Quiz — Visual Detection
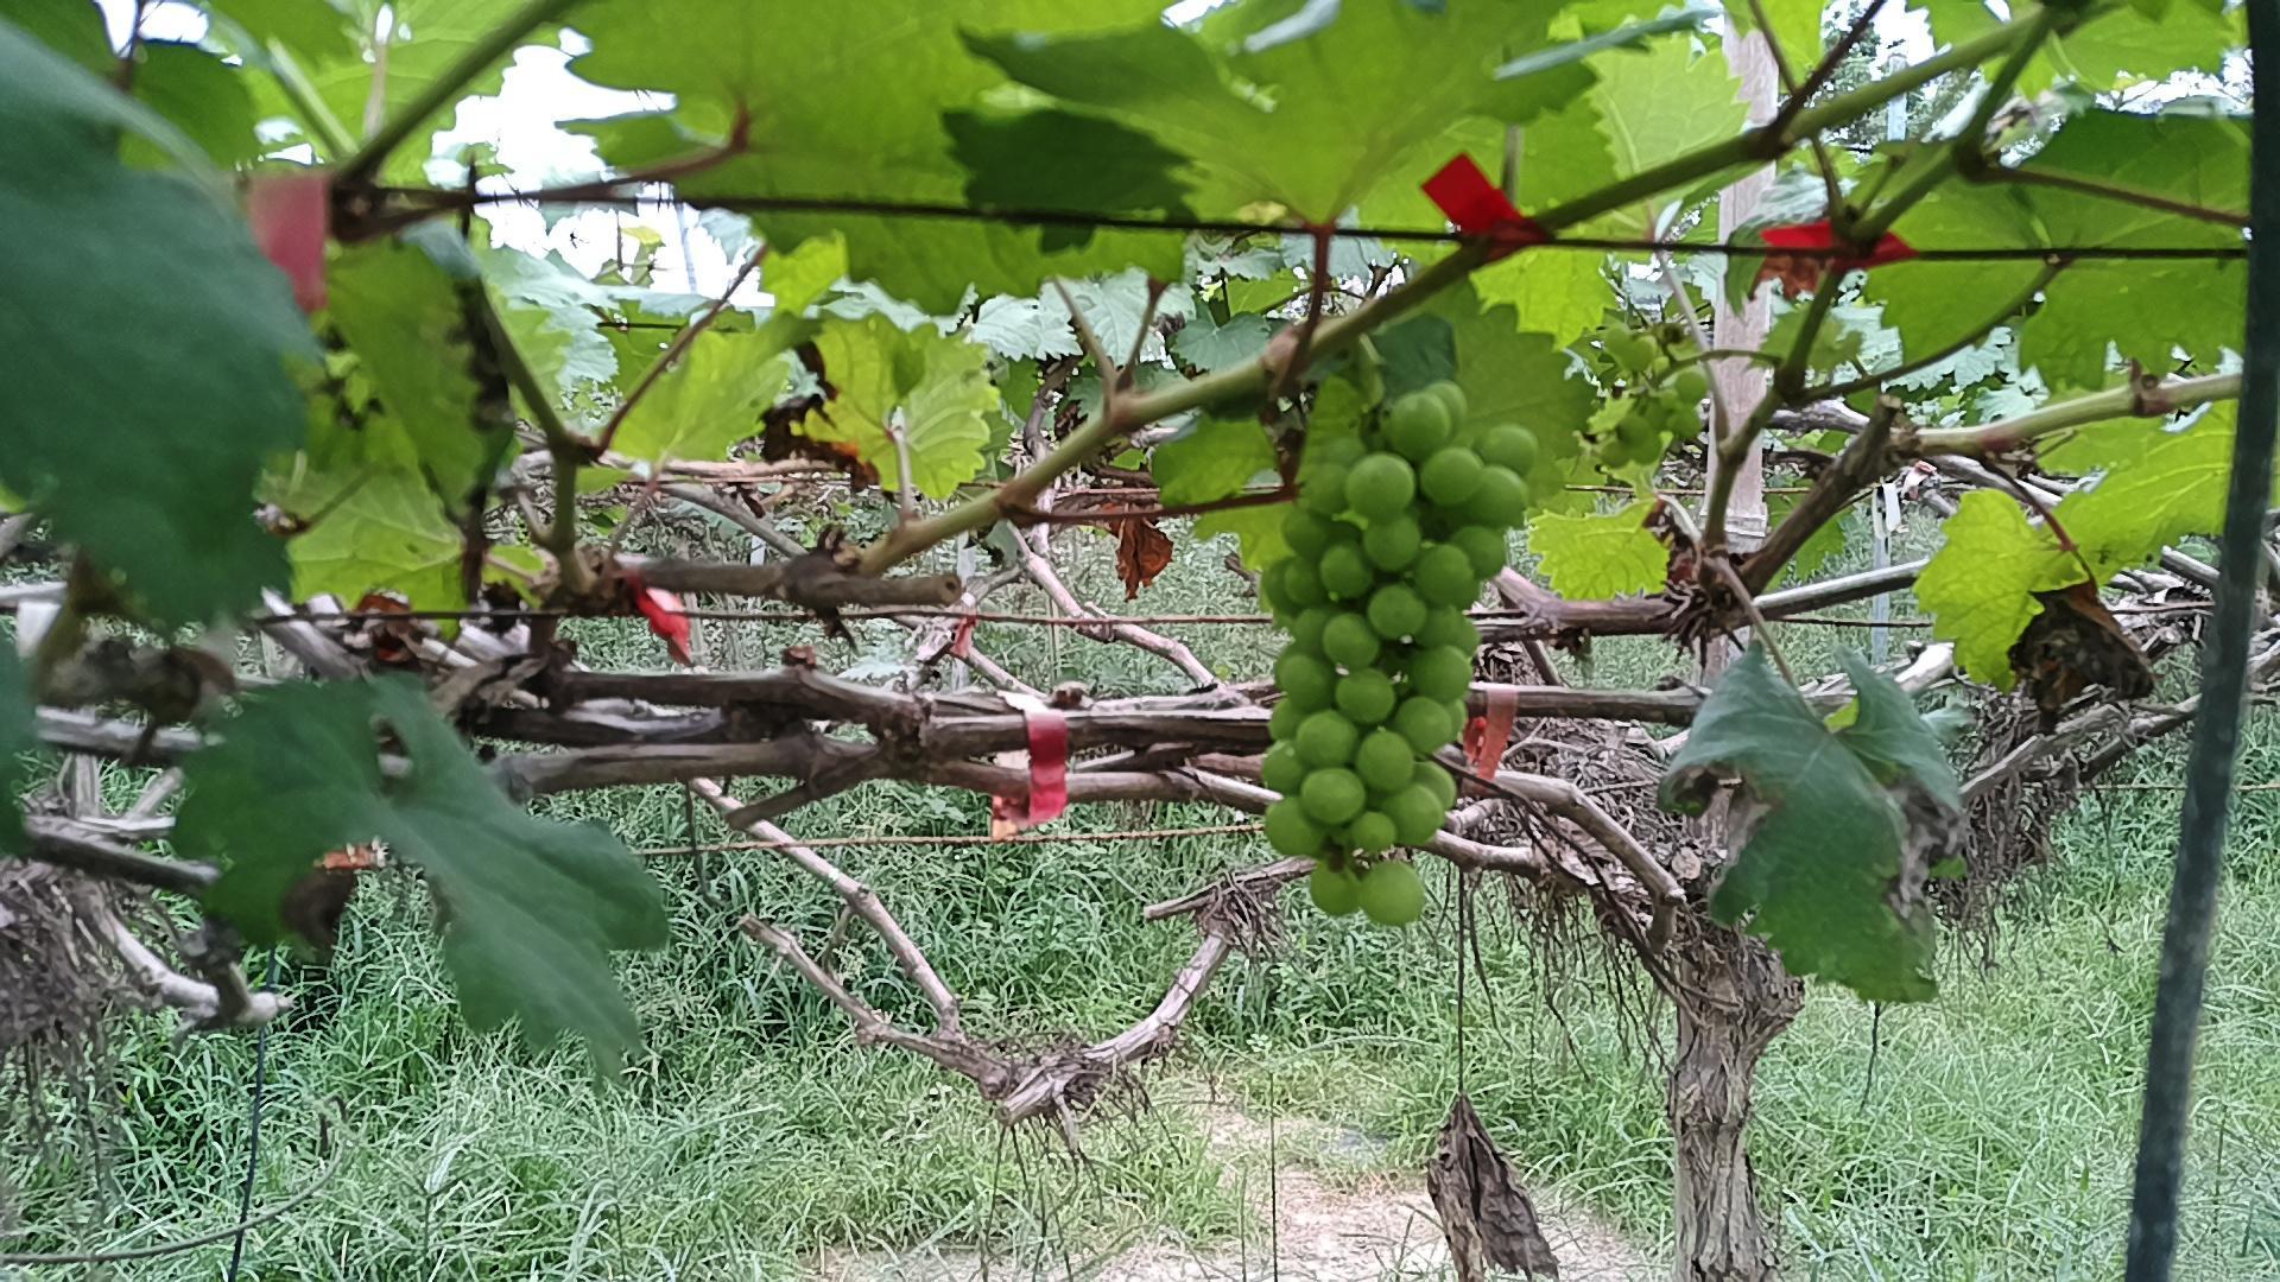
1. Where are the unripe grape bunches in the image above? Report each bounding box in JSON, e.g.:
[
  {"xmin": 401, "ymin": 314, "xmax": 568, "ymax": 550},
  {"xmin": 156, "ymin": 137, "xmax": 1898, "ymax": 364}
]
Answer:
[
  {"xmin": 1585, "ymin": 324, "xmax": 1706, "ymax": 472},
  {"xmin": 1262, "ymin": 382, "xmax": 1537, "ymax": 924}
]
